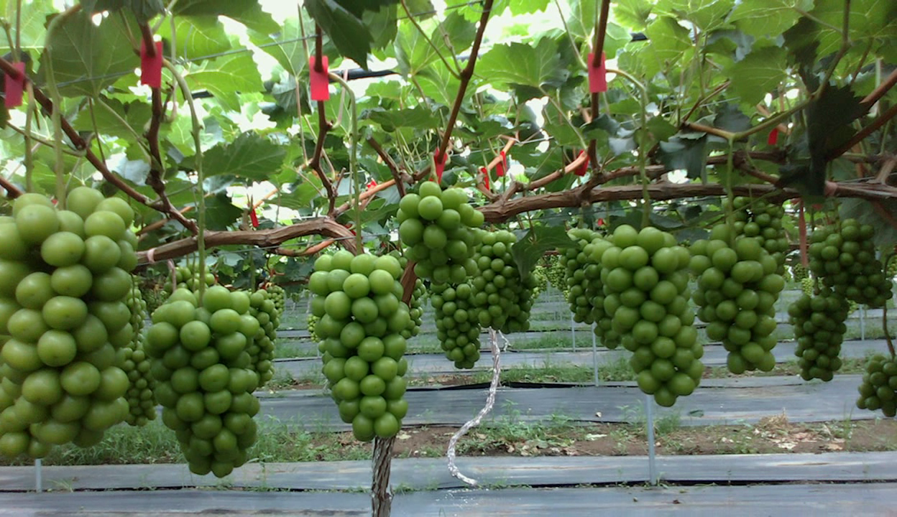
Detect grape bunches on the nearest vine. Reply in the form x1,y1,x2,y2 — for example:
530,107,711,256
0,186,138,448
592,224,704,408
688,223,785,376
142,286,259,479
307,250,410,442
397,181,484,286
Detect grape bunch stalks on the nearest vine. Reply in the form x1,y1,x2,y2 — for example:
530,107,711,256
686,121,735,251
427,152,439,183
162,57,206,307
329,72,362,255
42,4,80,210
606,68,650,230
